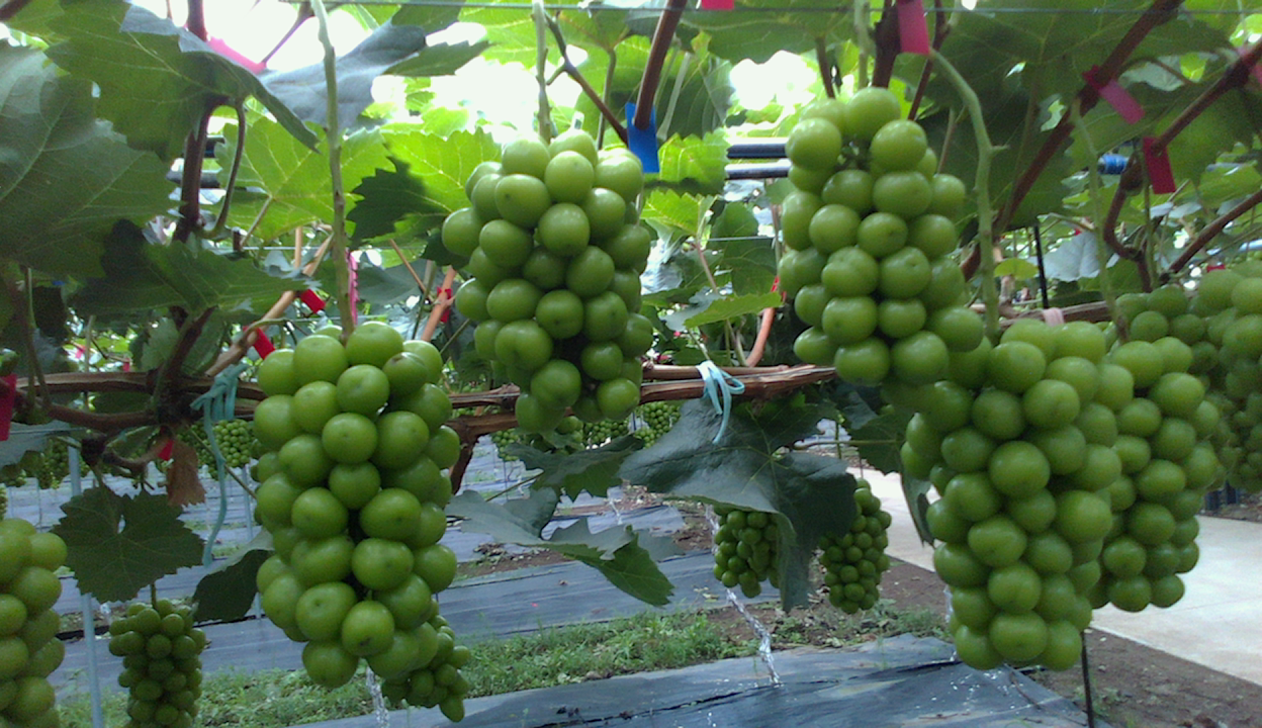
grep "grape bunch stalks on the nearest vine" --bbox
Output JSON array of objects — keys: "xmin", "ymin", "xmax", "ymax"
[
  {"xmin": 1068, "ymin": 98, "xmax": 1130, "ymax": 345},
  {"xmin": 532, "ymin": 0, "xmax": 551, "ymax": 143},
  {"xmin": 1126, "ymin": 149, "xmax": 1160, "ymax": 290},
  {"xmin": 308, "ymin": 1, "xmax": 355, "ymax": 341},
  {"xmin": 855, "ymin": 0, "xmax": 870, "ymax": 89},
  {"xmin": 925, "ymin": 48, "xmax": 1000, "ymax": 346}
]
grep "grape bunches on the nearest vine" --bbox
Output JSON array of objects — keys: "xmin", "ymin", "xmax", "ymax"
[
  {"xmin": 779, "ymin": 87, "xmax": 987, "ymax": 408},
  {"xmin": 1093, "ymin": 339, "xmax": 1218, "ymax": 613},
  {"xmin": 2, "ymin": 518, "xmax": 70, "ymax": 727},
  {"xmin": 254, "ymin": 322, "xmax": 459, "ymax": 689},
  {"xmin": 904, "ymin": 320, "xmax": 1133, "ymax": 671},
  {"xmin": 441, "ymin": 127, "xmax": 655, "ymax": 436}
]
